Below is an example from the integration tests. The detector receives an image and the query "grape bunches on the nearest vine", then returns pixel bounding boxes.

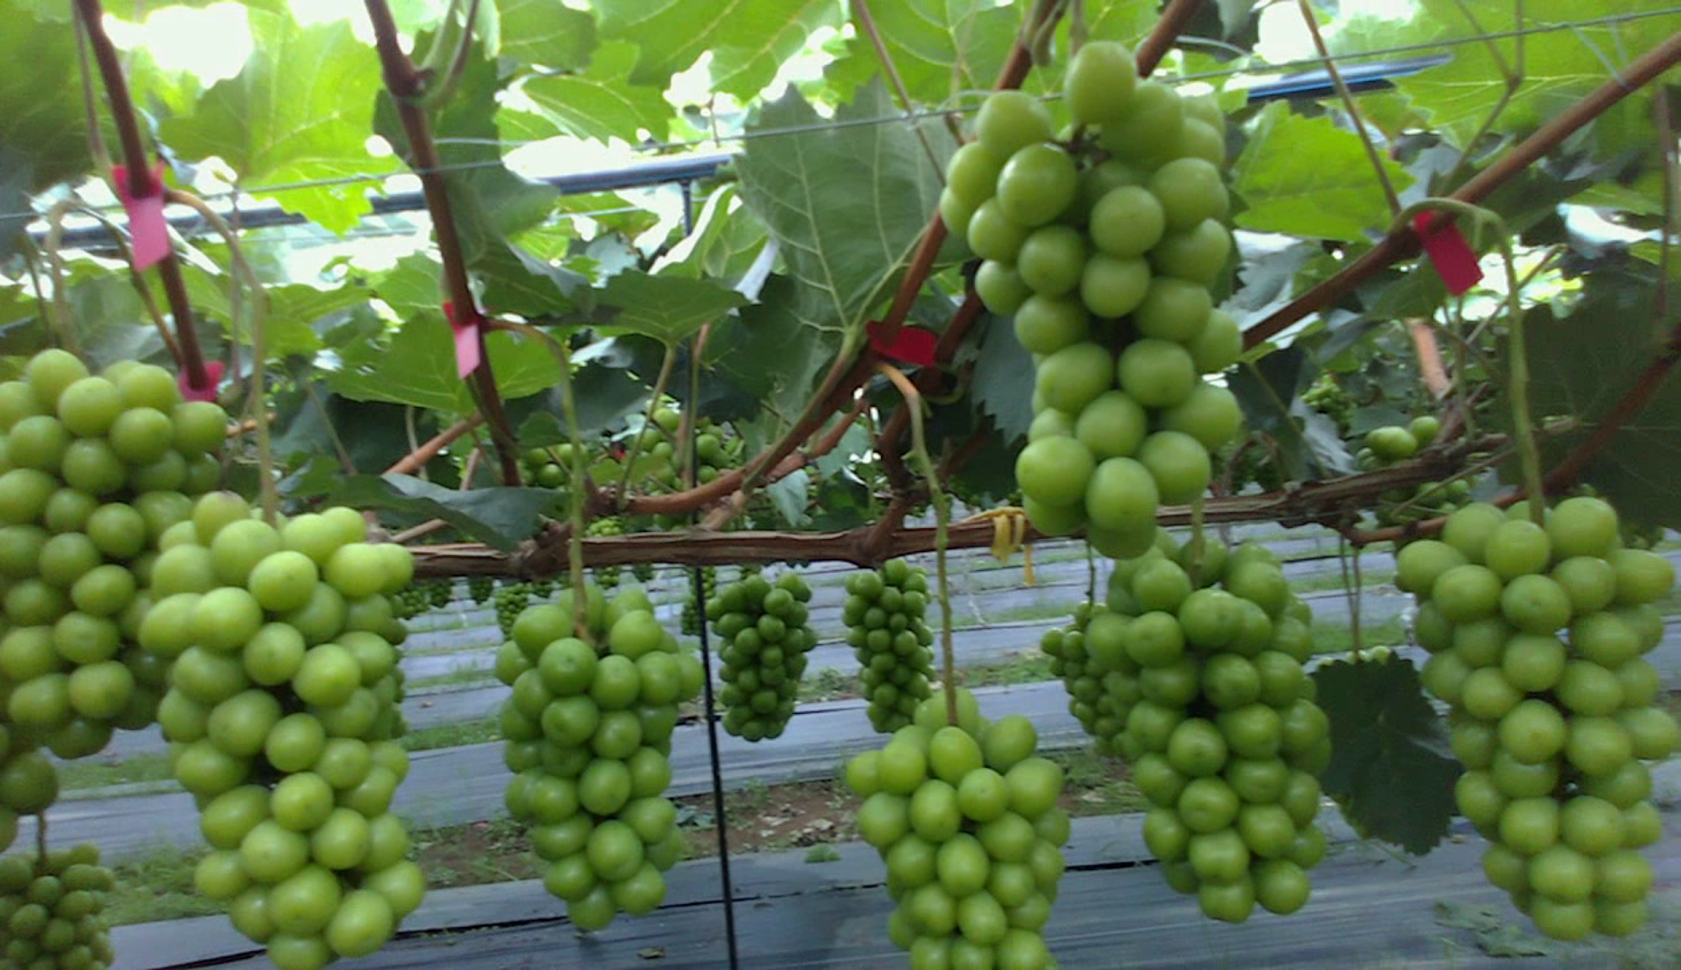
[849,690,1071,969]
[0,350,229,757]
[140,492,427,969]
[1398,497,1680,938]
[940,40,1243,555]
[1086,532,1329,920]
[494,586,703,928]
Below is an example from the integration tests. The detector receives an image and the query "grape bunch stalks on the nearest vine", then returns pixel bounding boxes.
[1390,198,1545,521]
[480,318,586,640]
[876,360,960,725]
[162,186,275,524]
